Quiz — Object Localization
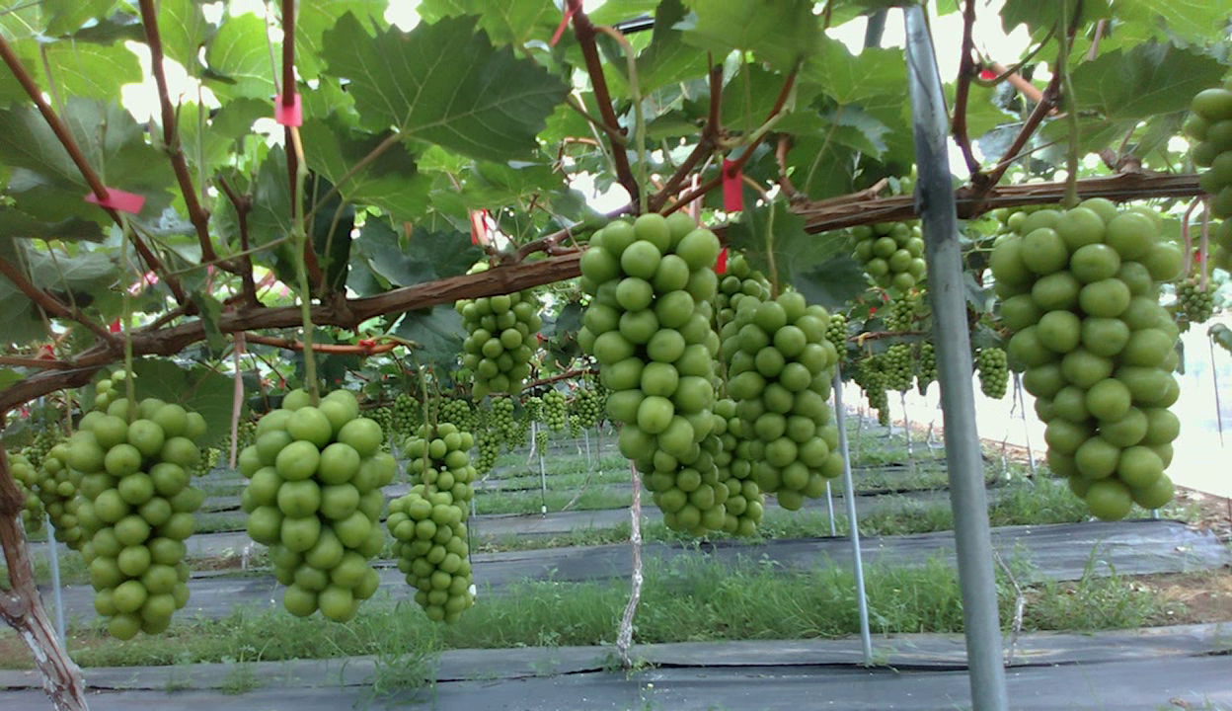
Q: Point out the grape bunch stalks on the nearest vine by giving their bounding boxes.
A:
[119,211,137,421]
[595,25,649,214]
[743,176,778,300]
[1058,0,1080,208]
[367,335,429,499]
[290,126,320,407]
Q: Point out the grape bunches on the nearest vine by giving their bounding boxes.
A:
[990,198,1182,523]
[711,399,765,536]
[577,212,720,461]
[634,434,730,538]
[721,291,843,512]
[1185,85,1230,270]
[67,398,208,640]
[236,388,400,625]
[387,485,474,626]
